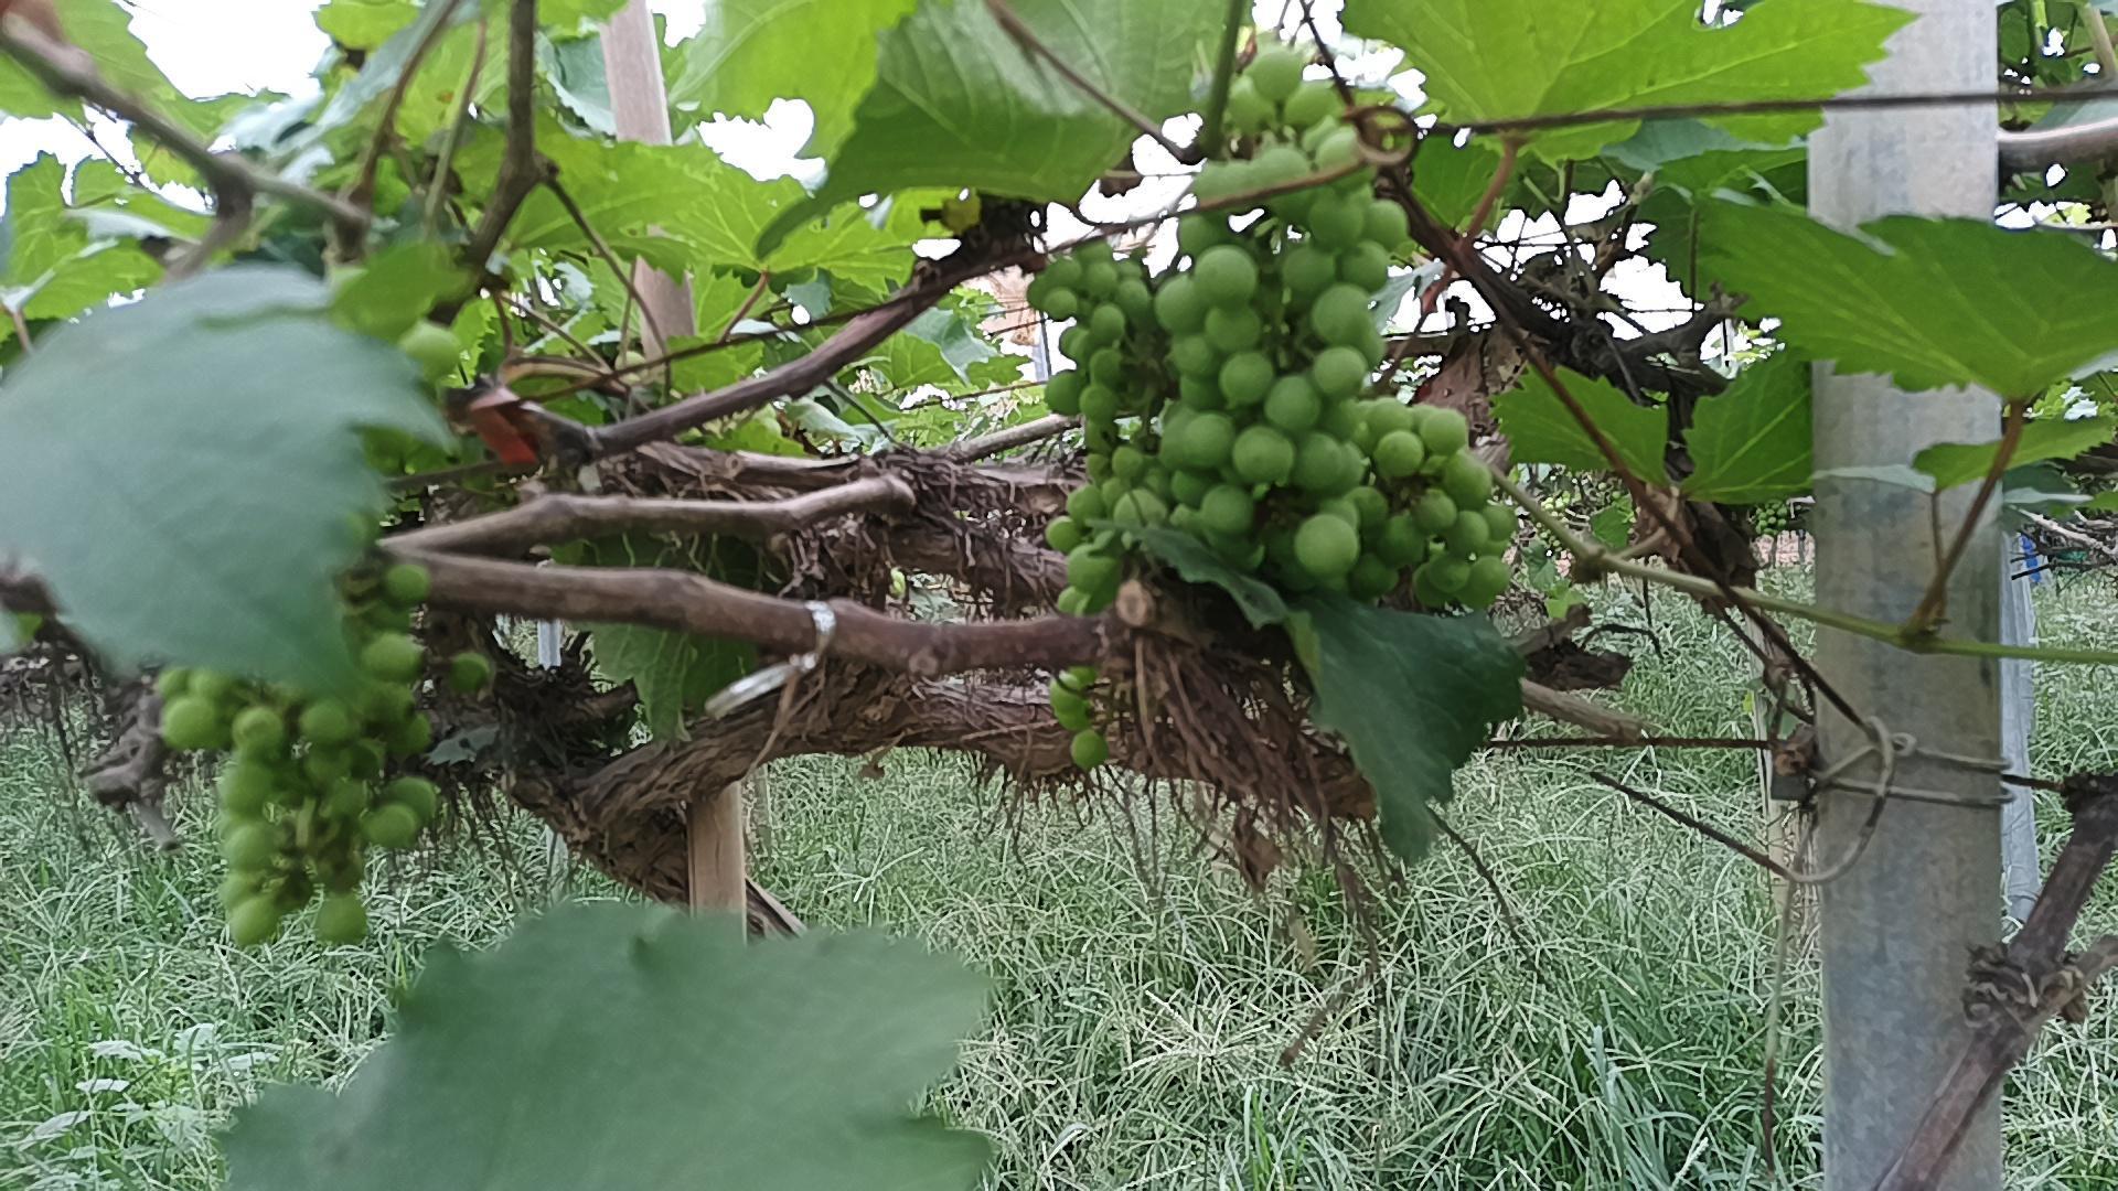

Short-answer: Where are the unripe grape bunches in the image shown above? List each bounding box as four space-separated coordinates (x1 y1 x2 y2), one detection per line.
1751 495 1810 536
1157 42 1516 609
1029 238 1186 769
158 560 492 947
398 320 461 379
